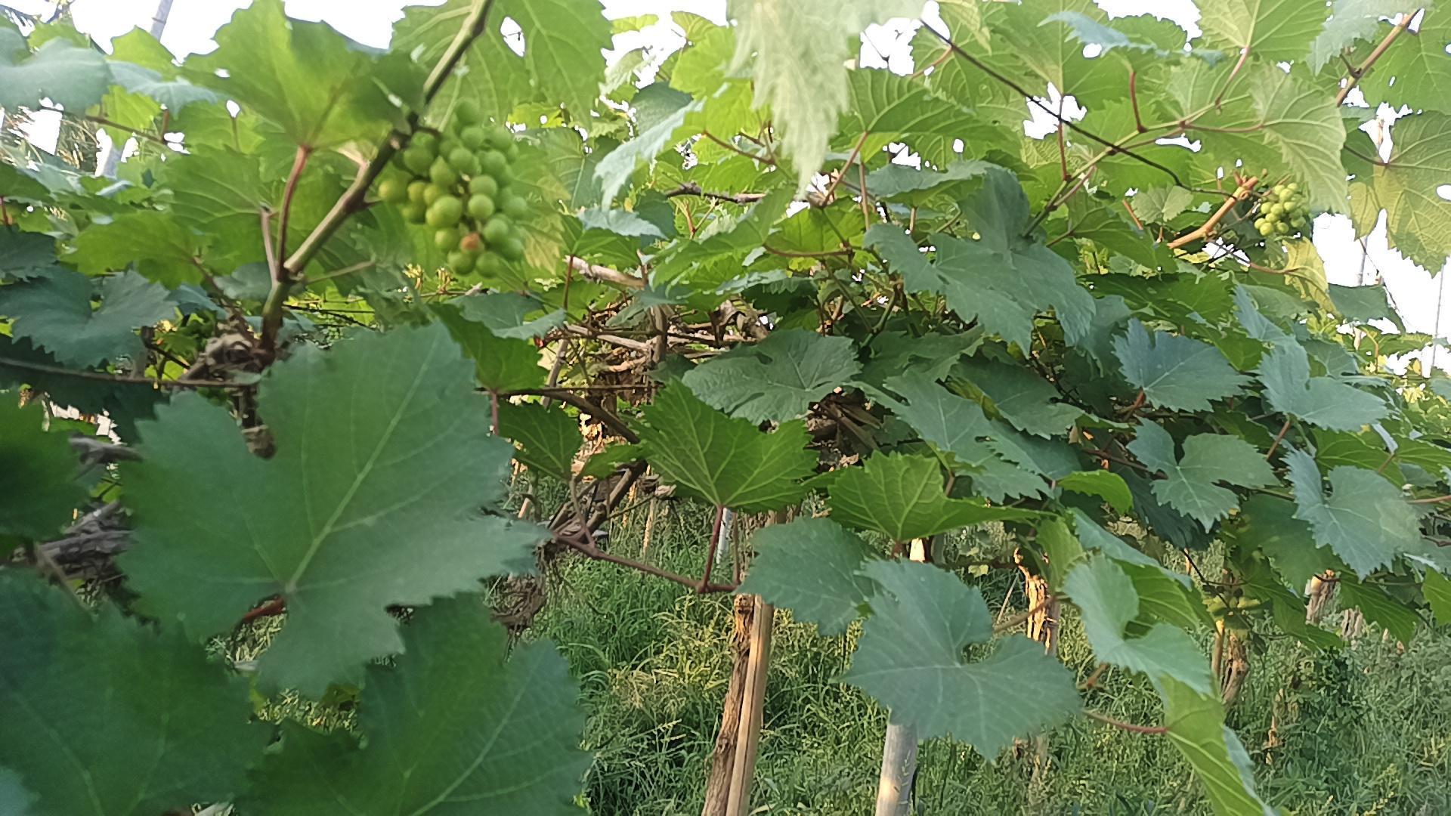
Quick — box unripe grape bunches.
[378,102,526,277]
[1250,183,1312,241]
